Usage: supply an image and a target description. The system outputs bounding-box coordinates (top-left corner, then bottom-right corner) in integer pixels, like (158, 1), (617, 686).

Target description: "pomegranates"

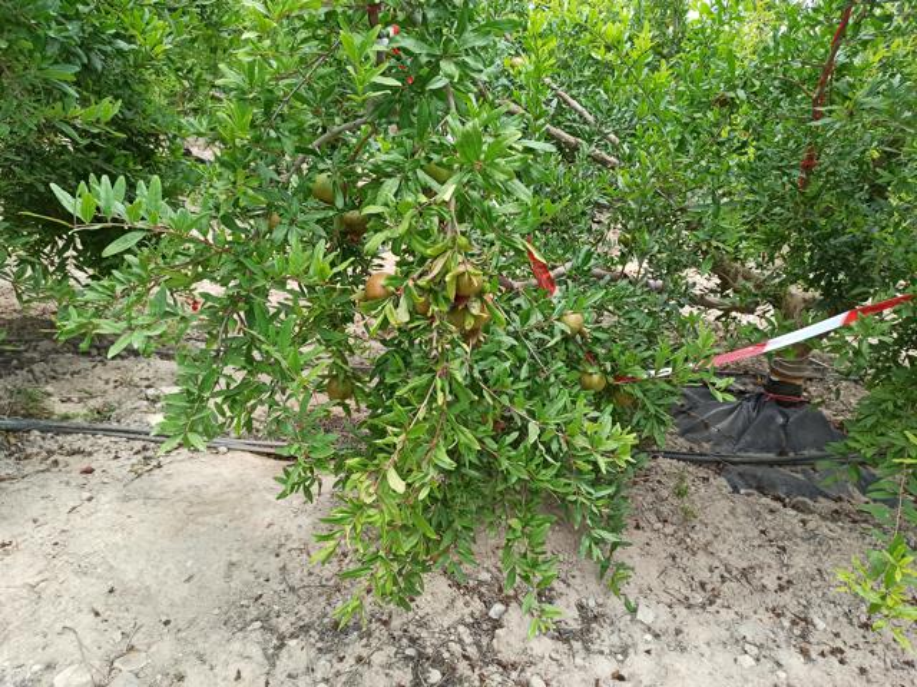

(456, 272), (481, 298)
(309, 173), (335, 205)
(327, 375), (354, 402)
(579, 372), (606, 392)
(559, 313), (585, 338)
(364, 271), (391, 302)
(448, 308), (489, 345)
